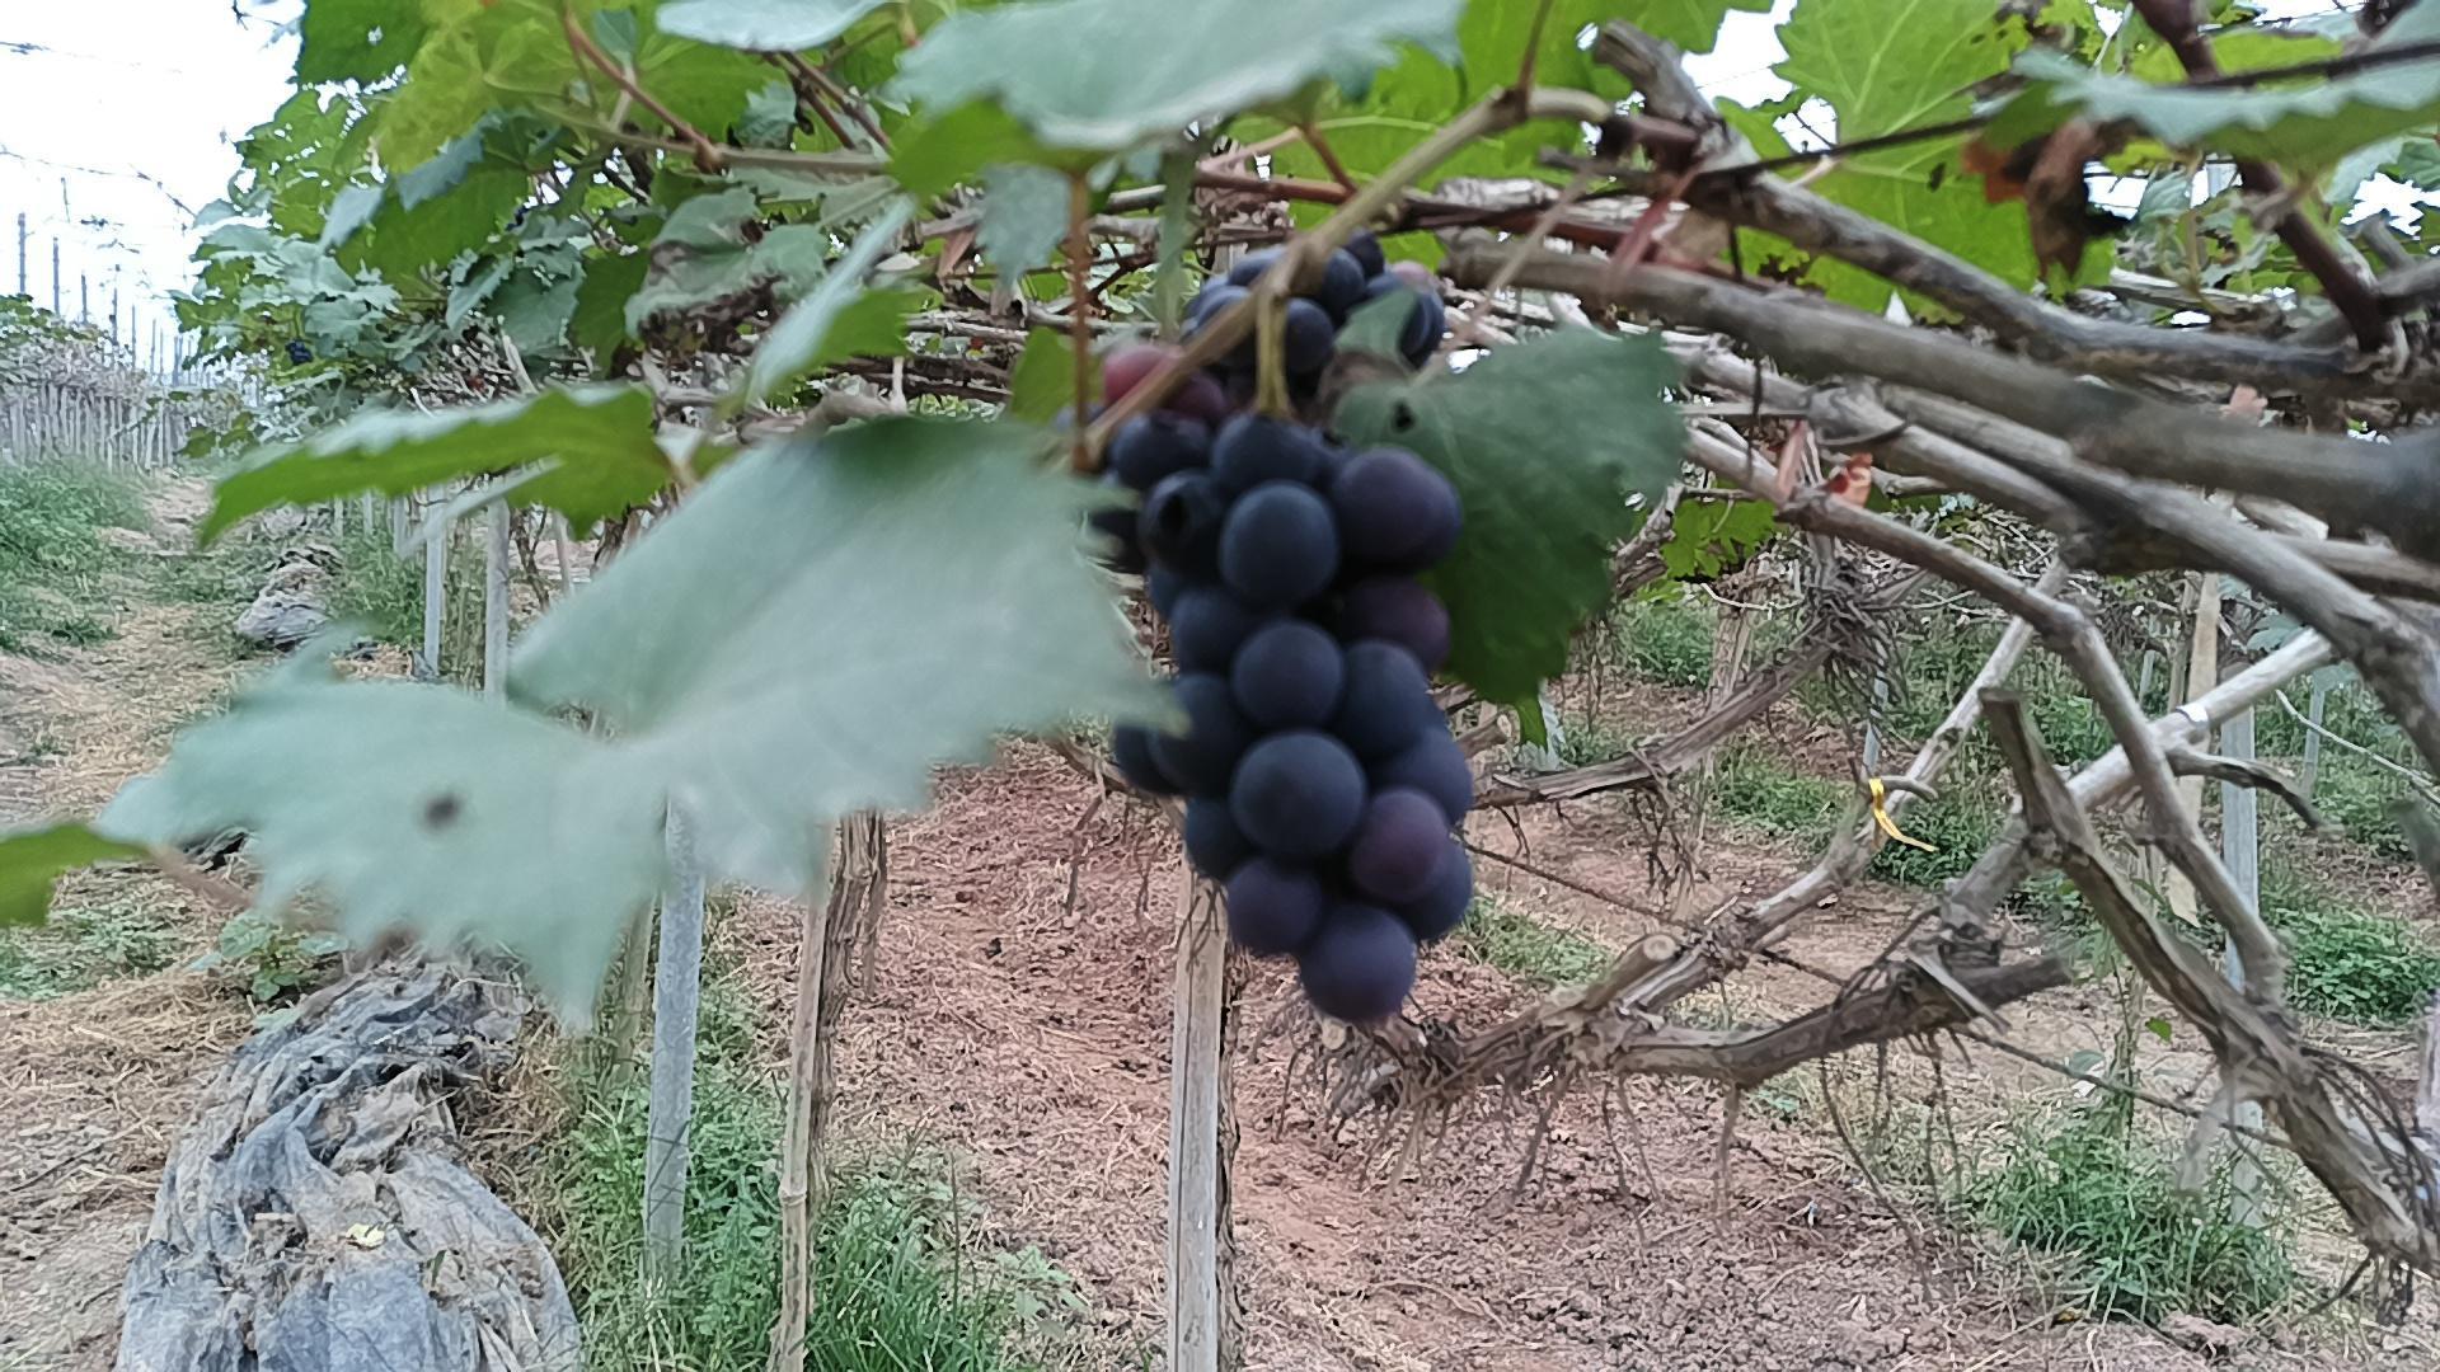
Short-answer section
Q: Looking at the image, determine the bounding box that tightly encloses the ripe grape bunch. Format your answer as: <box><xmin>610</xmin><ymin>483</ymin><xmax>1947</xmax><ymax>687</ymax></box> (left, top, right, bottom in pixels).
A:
<box><xmin>1051</xmin><ymin>230</ymin><xmax>1472</xmax><ymax>1023</ymax></box>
